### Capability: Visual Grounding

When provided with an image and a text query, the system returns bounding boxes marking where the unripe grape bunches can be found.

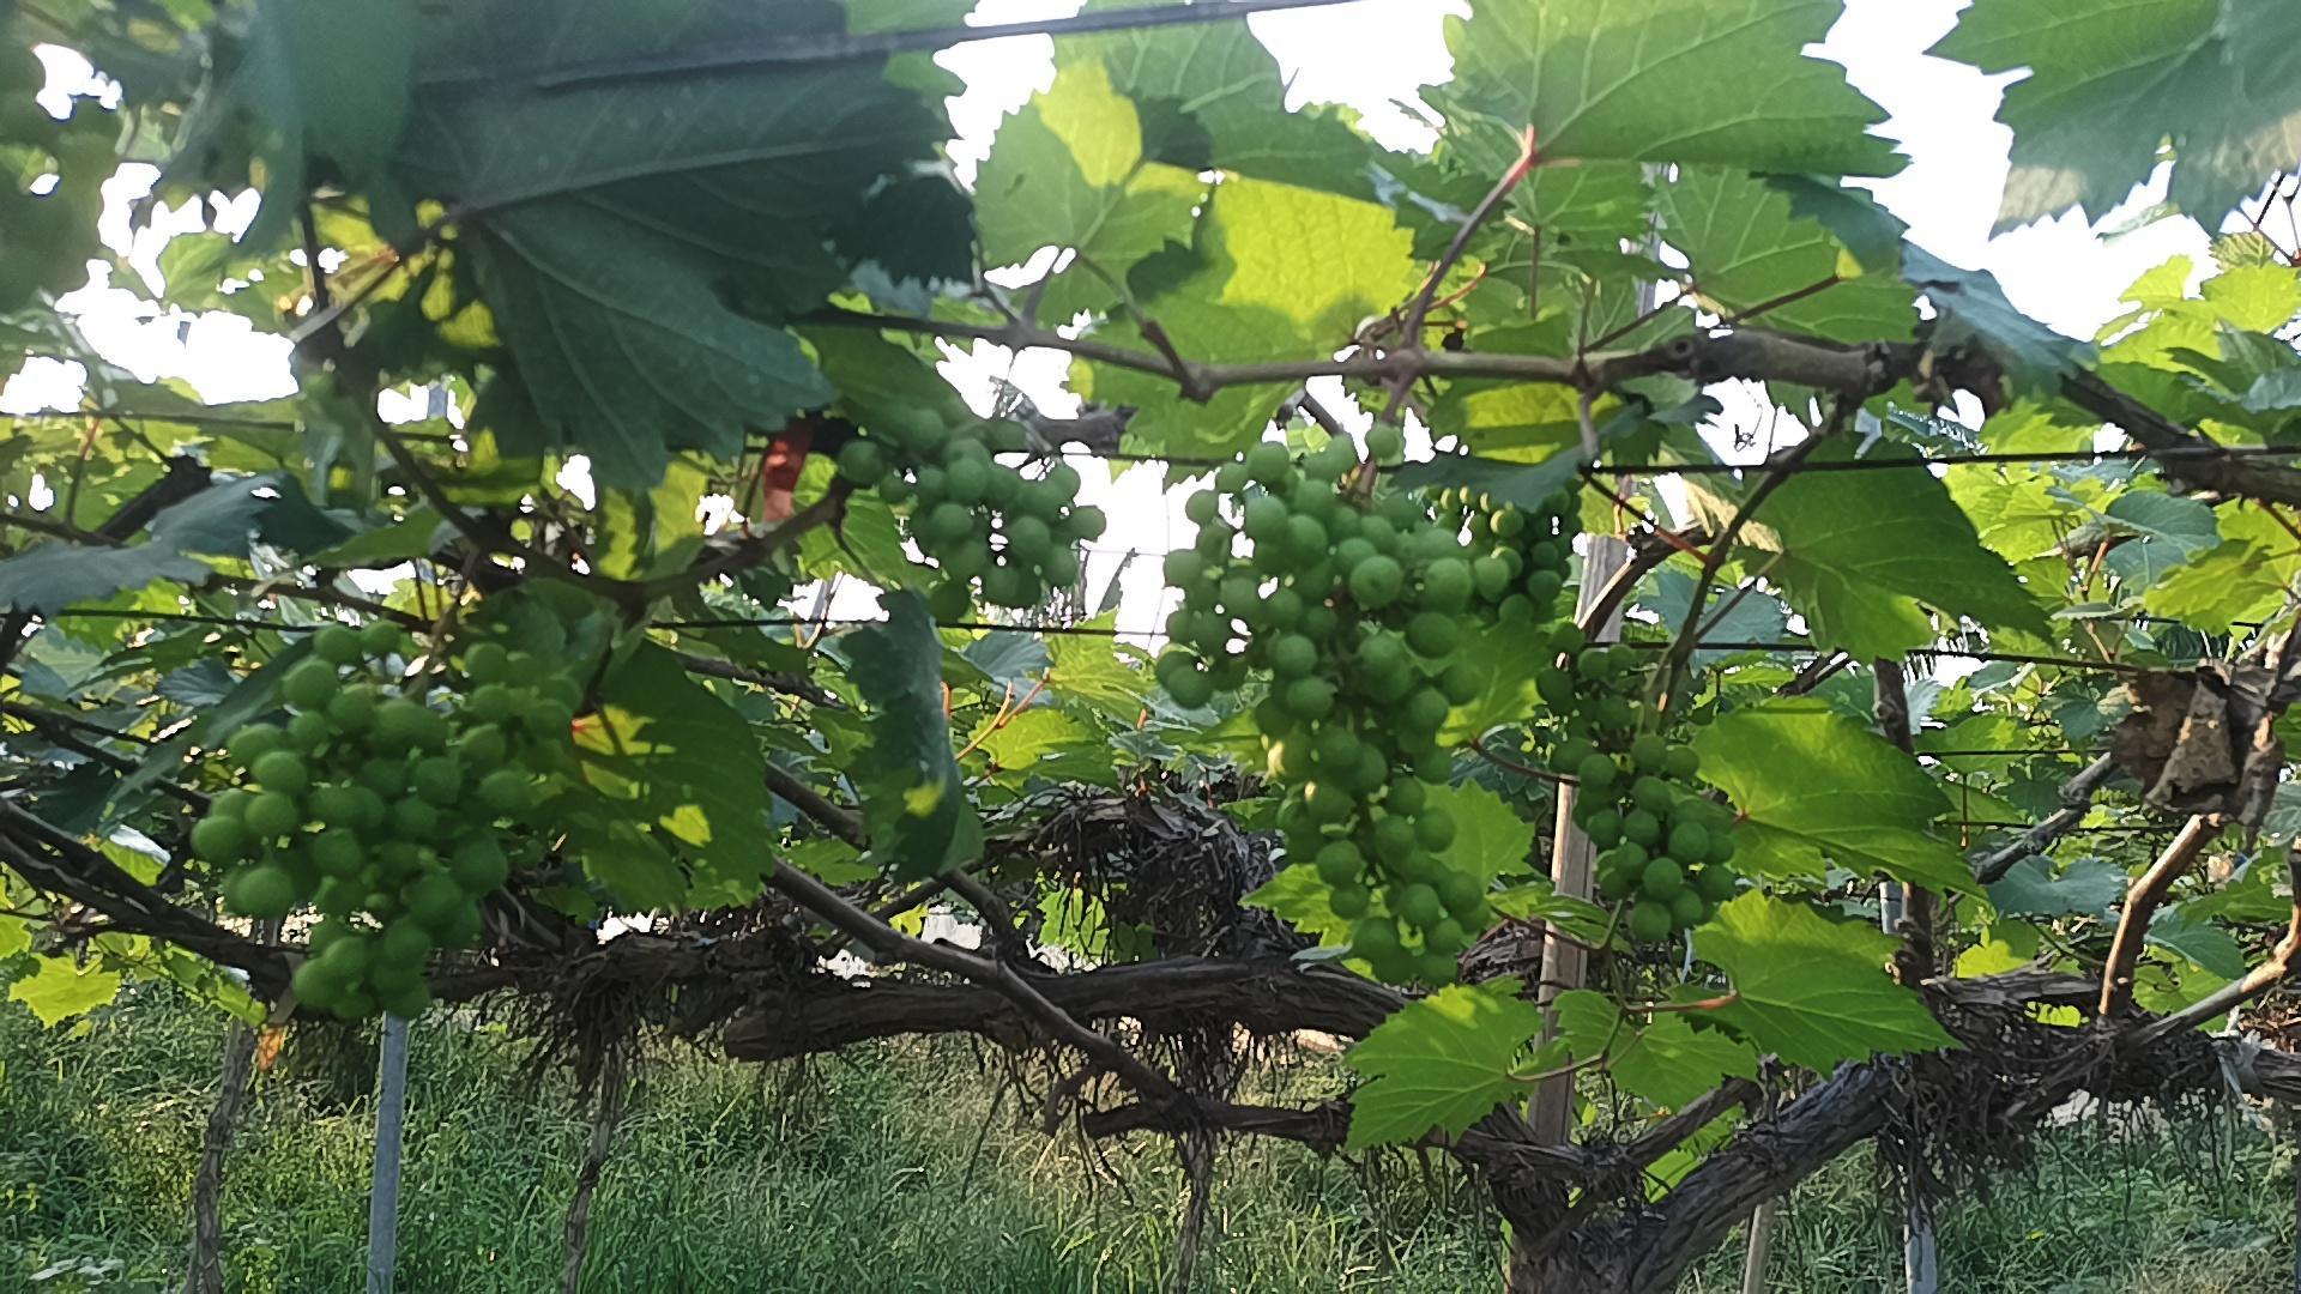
[838,401,1101,621]
[1425,489,1581,623]
[1155,424,1490,985]
[192,623,574,1018]
[1535,623,1734,942]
